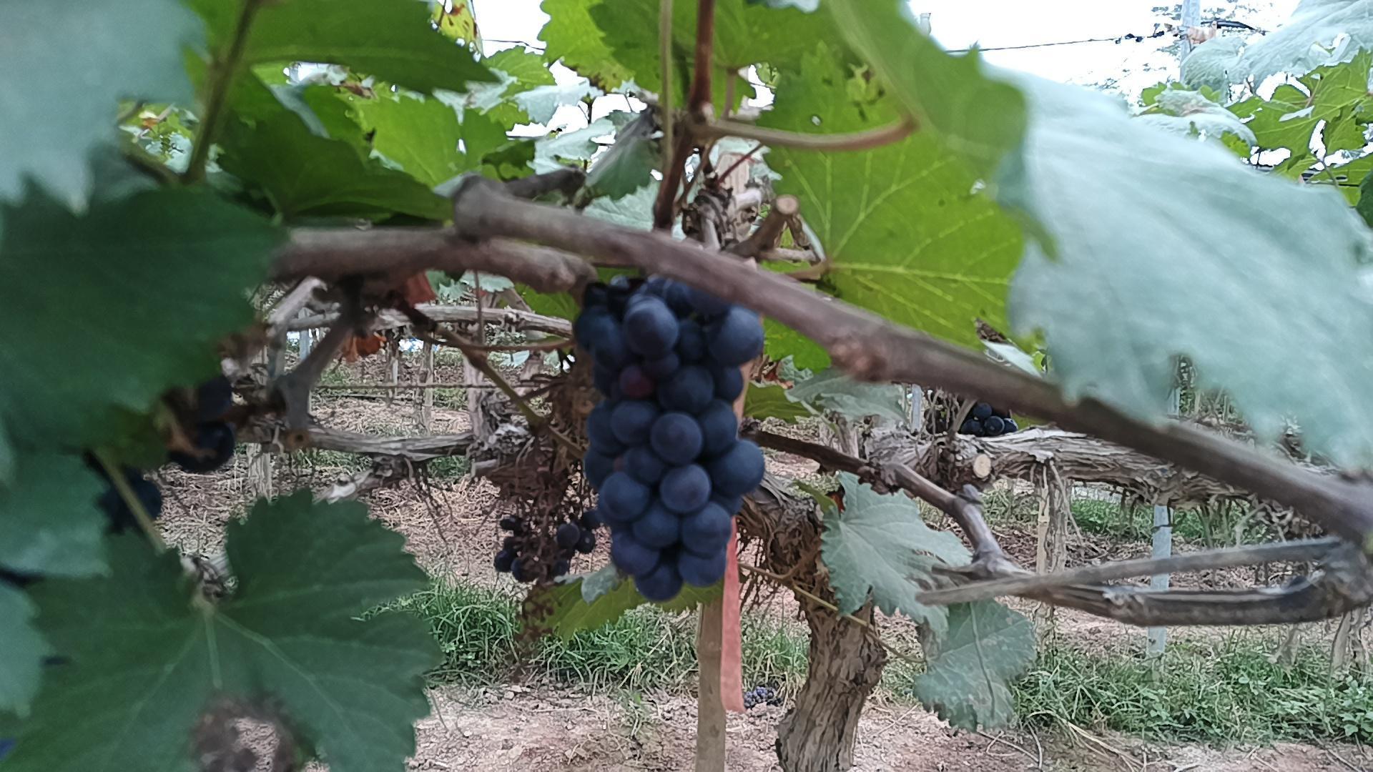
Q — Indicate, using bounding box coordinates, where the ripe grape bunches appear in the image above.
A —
[97,371,235,533]
[494,502,600,583]
[574,277,764,601]
[924,390,1019,437]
